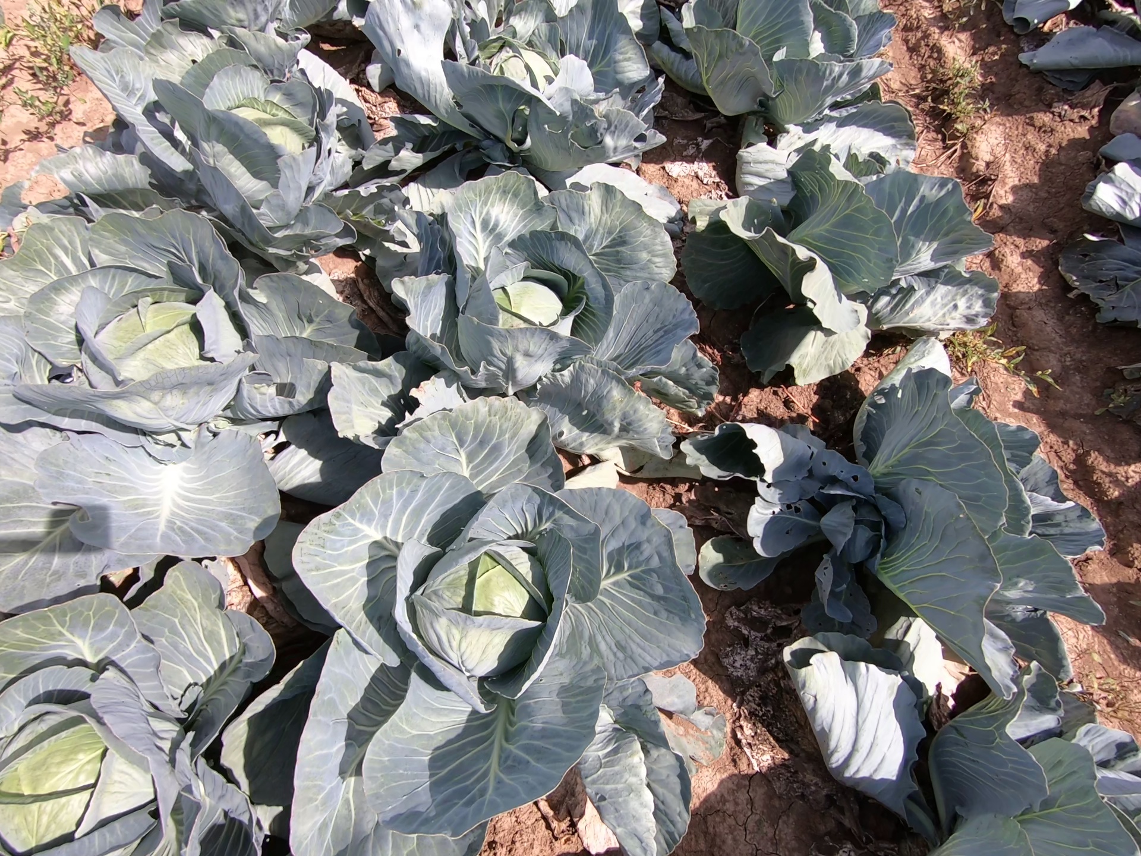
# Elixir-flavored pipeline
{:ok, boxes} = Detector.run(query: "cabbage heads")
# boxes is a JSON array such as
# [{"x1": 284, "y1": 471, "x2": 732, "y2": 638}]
[
  {"x1": 93, "y1": 301, "x2": 231, "y2": 420},
  {"x1": 477, "y1": 48, "x2": 561, "y2": 128},
  {"x1": 421, "y1": 542, "x2": 551, "y2": 672},
  {"x1": 1, "y1": 697, "x2": 187, "y2": 855},
  {"x1": 223, "y1": 107, "x2": 304, "y2": 194},
  {"x1": 465, "y1": 281, "x2": 564, "y2": 377}
]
